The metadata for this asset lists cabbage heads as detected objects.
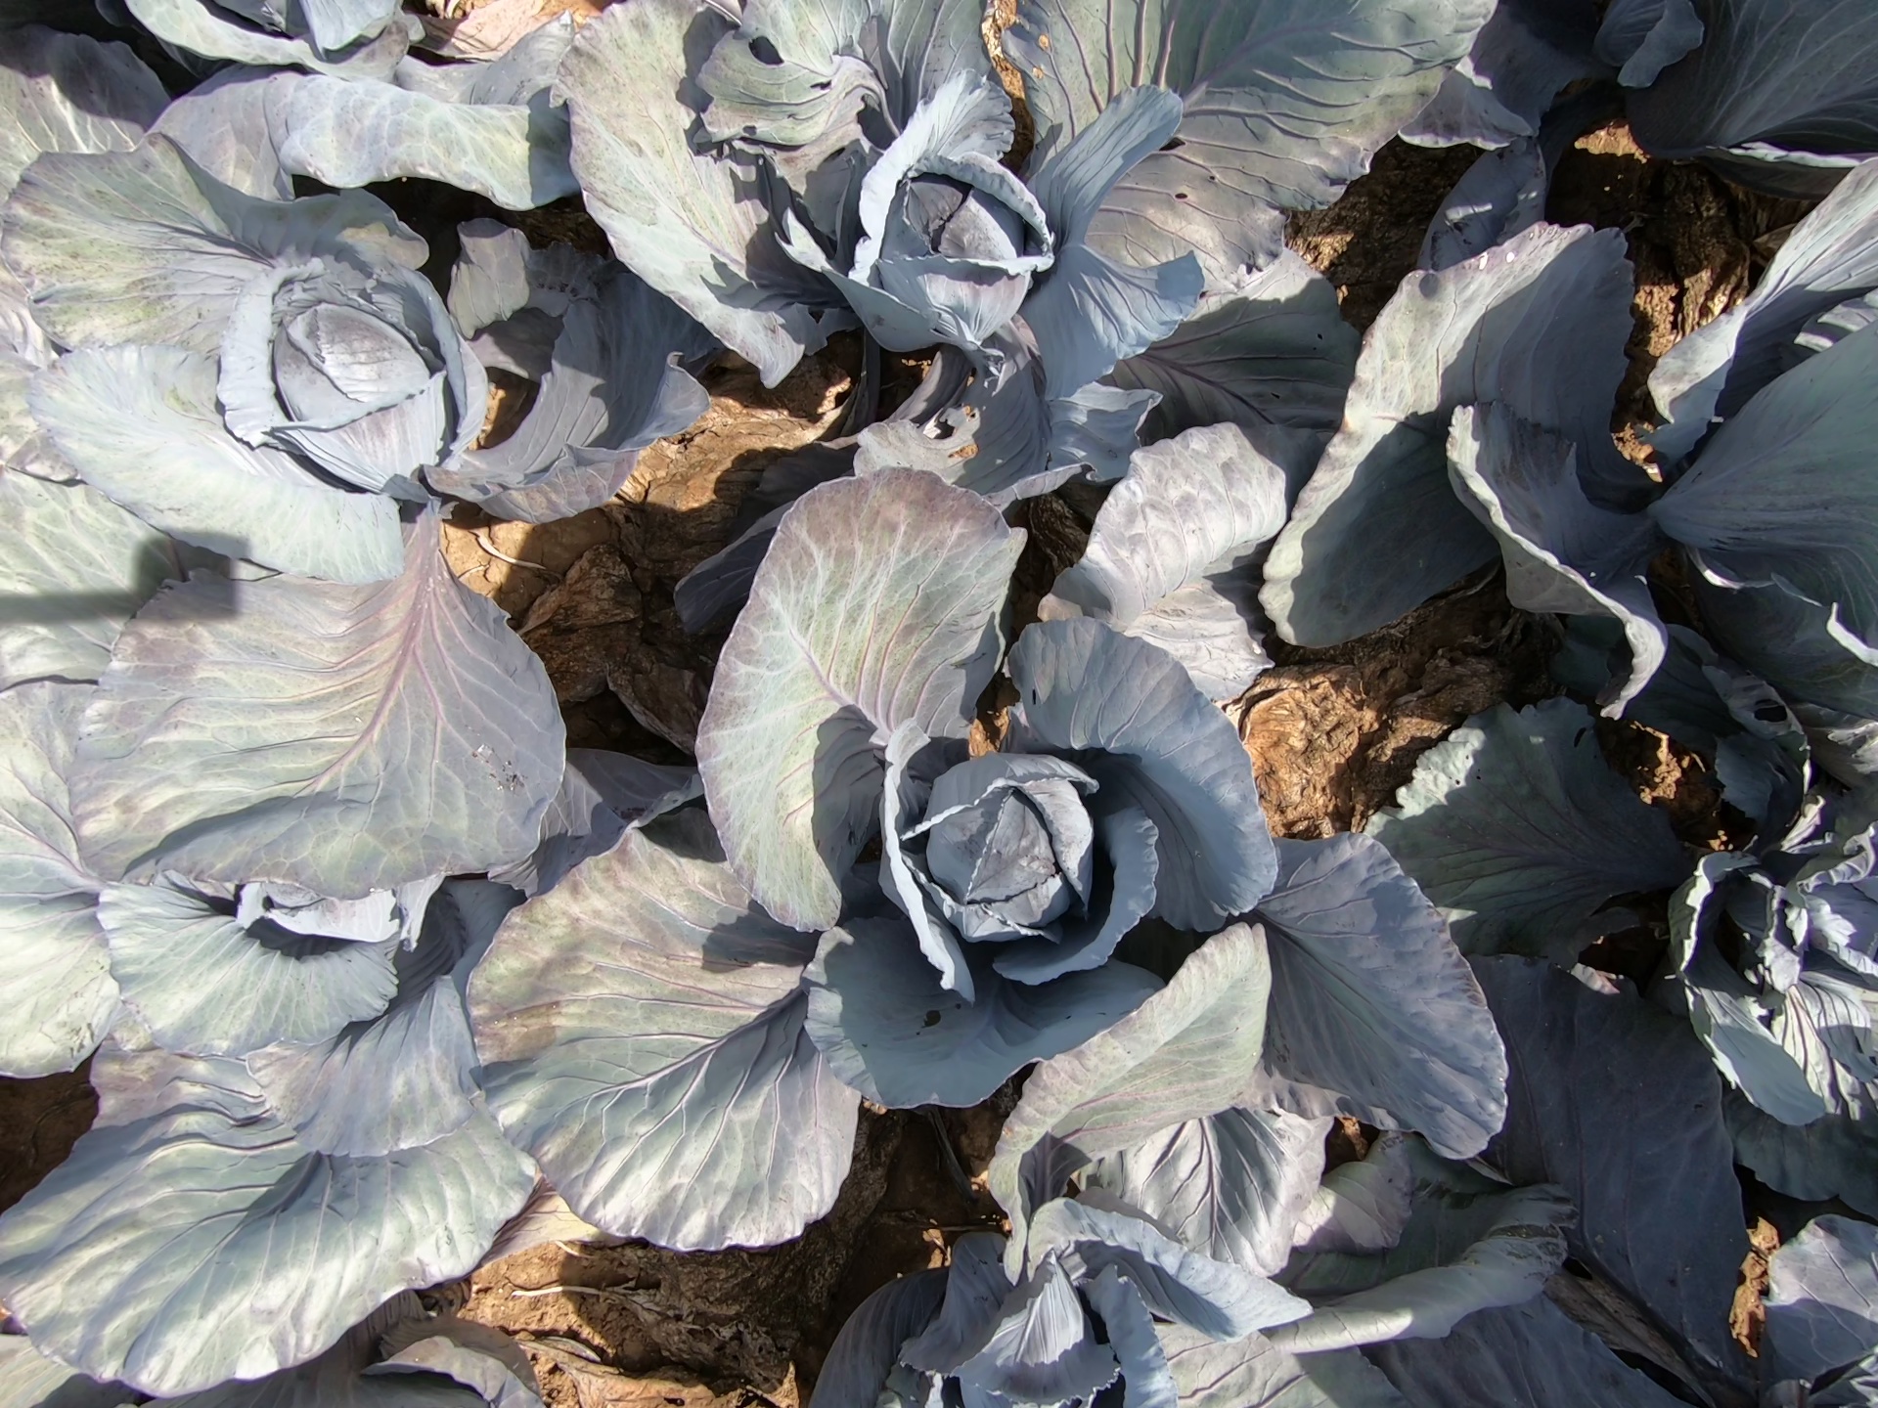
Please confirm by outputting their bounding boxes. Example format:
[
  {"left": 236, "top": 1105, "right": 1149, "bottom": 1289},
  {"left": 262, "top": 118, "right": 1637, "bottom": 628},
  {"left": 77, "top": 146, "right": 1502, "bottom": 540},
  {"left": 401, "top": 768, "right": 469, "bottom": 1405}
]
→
[
  {"left": 863, "top": 157, "right": 1043, "bottom": 327},
  {"left": 925, "top": 754, "right": 1096, "bottom": 938},
  {"left": 241, "top": 793, "right": 415, "bottom": 942},
  {"left": 271, "top": 295, "right": 446, "bottom": 481},
  {"left": 957, "top": 1266, "right": 1103, "bottom": 1405}
]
